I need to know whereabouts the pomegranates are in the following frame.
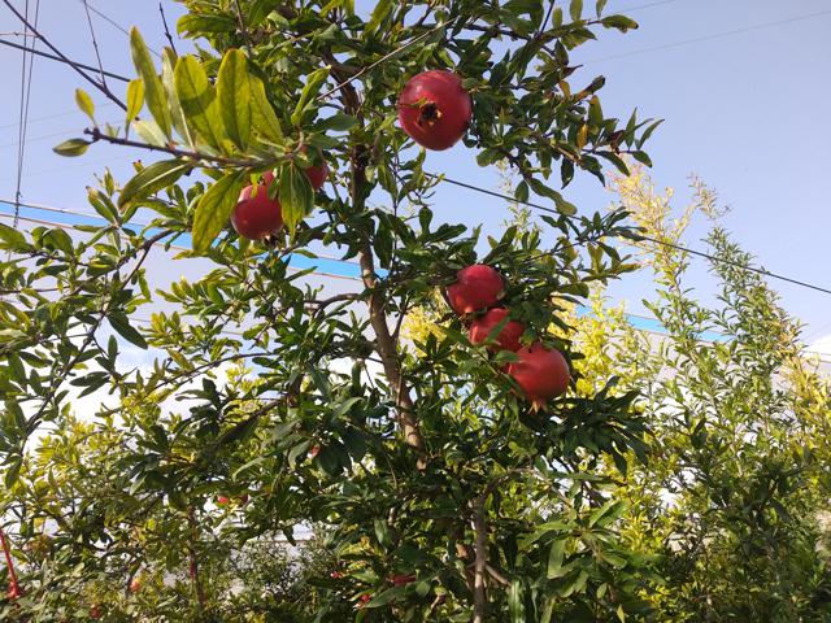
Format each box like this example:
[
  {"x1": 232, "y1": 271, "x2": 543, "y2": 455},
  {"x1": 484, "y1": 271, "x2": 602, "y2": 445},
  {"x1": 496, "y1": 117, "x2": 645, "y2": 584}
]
[
  {"x1": 444, "y1": 263, "x2": 505, "y2": 322},
  {"x1": 397, "y1": 69, "x2": 473, "y2": 151},
  {"x1": 231, "y1": 170, "x2": 286, "y2": 247},
  {"x1": 303, "y1": 164, "x2": 327, "y2": 189},
  {"x1": 505, "y1": 341, "x2": 570, "y2": 414},
  {"x1": 470, "y1": 306, "x2": 526, "y2": 354}
]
